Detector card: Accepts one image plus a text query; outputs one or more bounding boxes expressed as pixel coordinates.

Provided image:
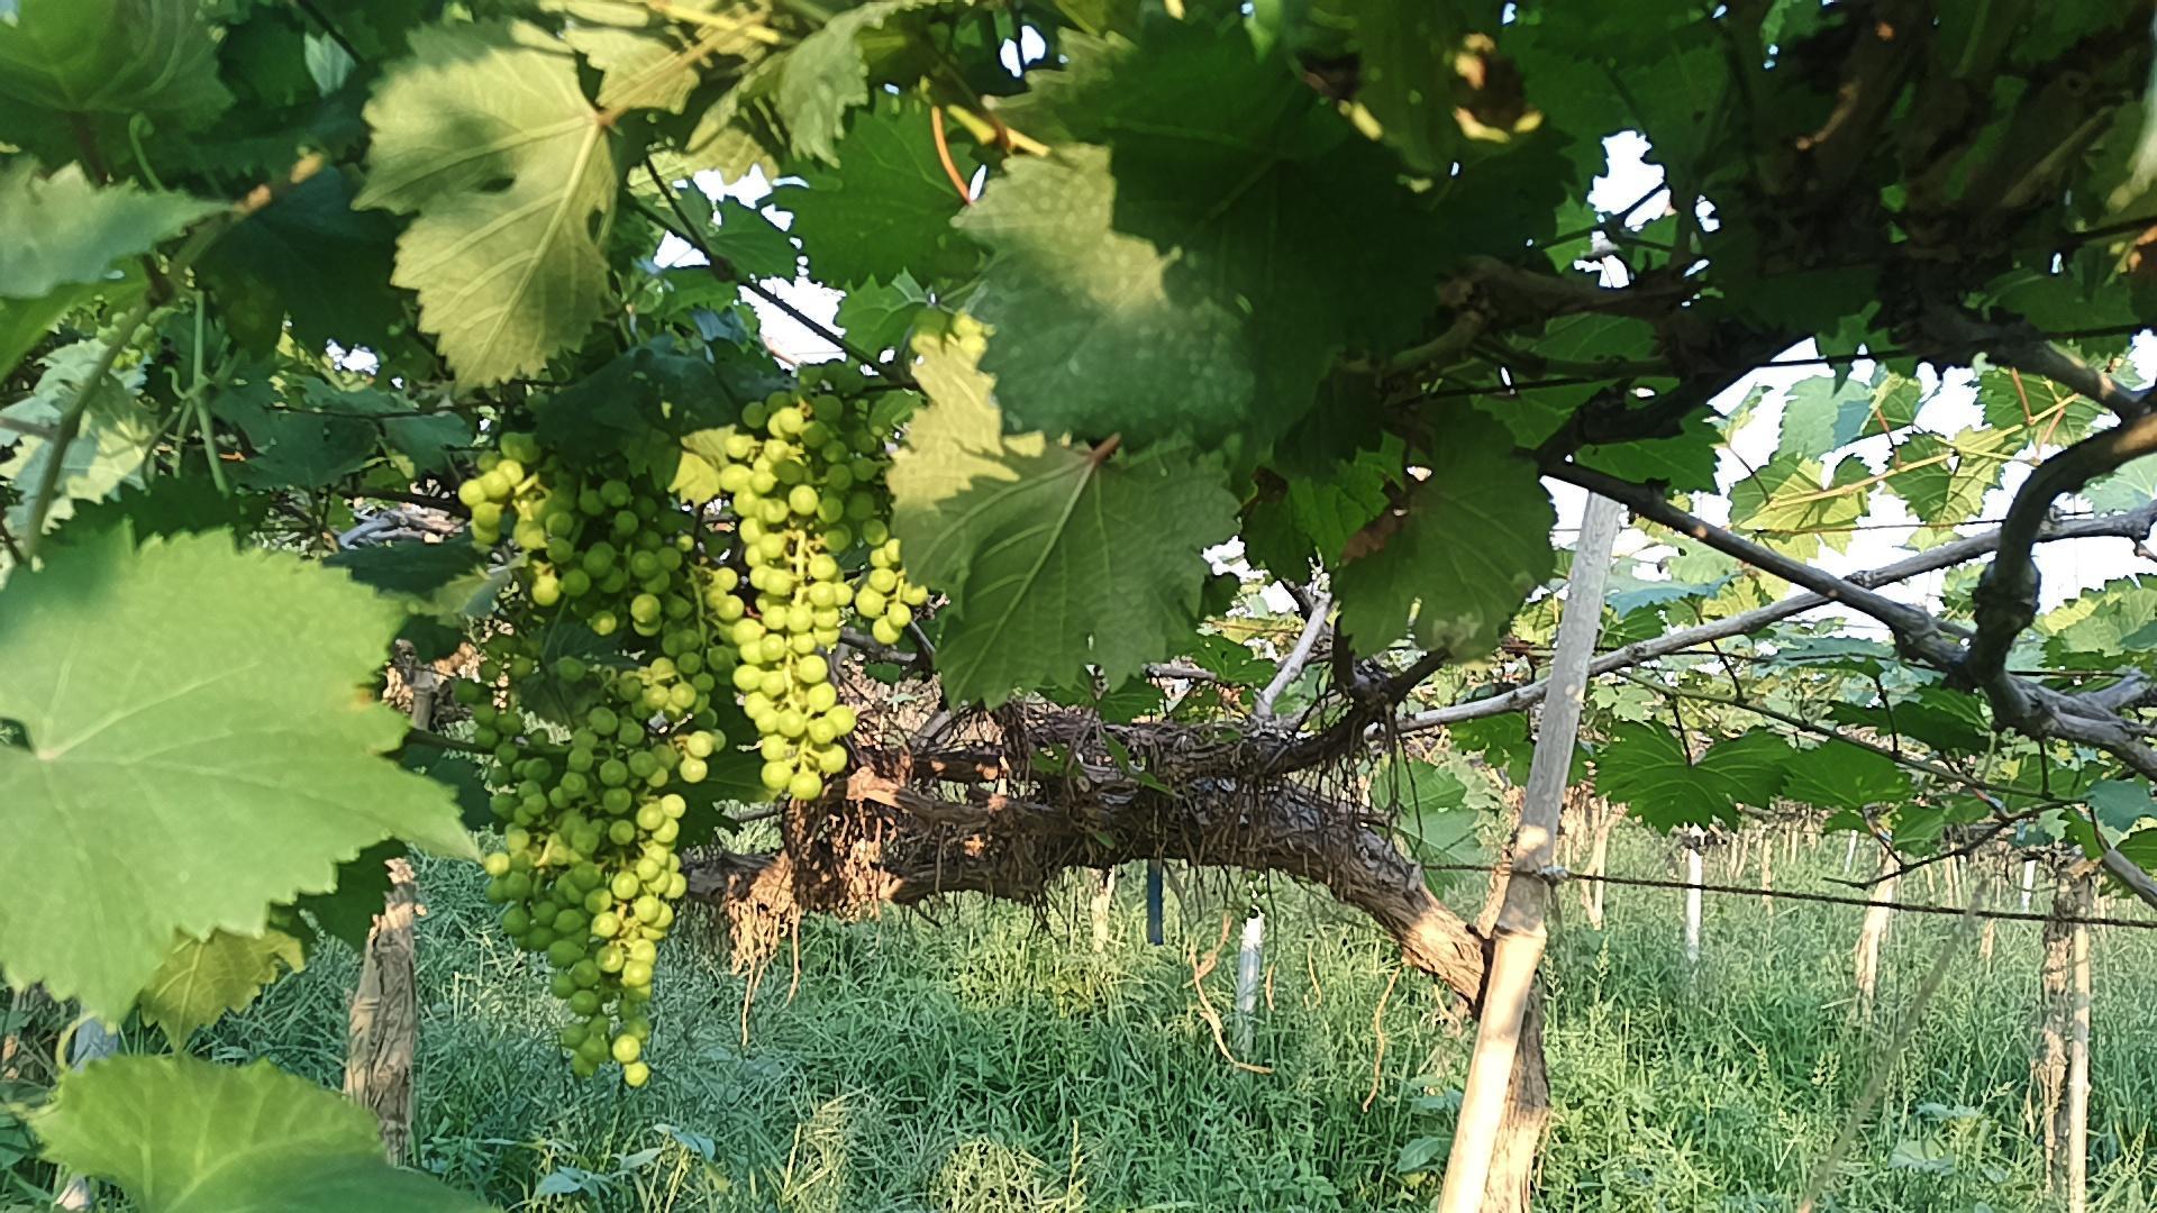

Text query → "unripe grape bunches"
[723,358,894,797]
[455,632,653,1088]
[617,528,746,722]
[854,518,927,645]
[557,656,727,986]
[459,434,692,636]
